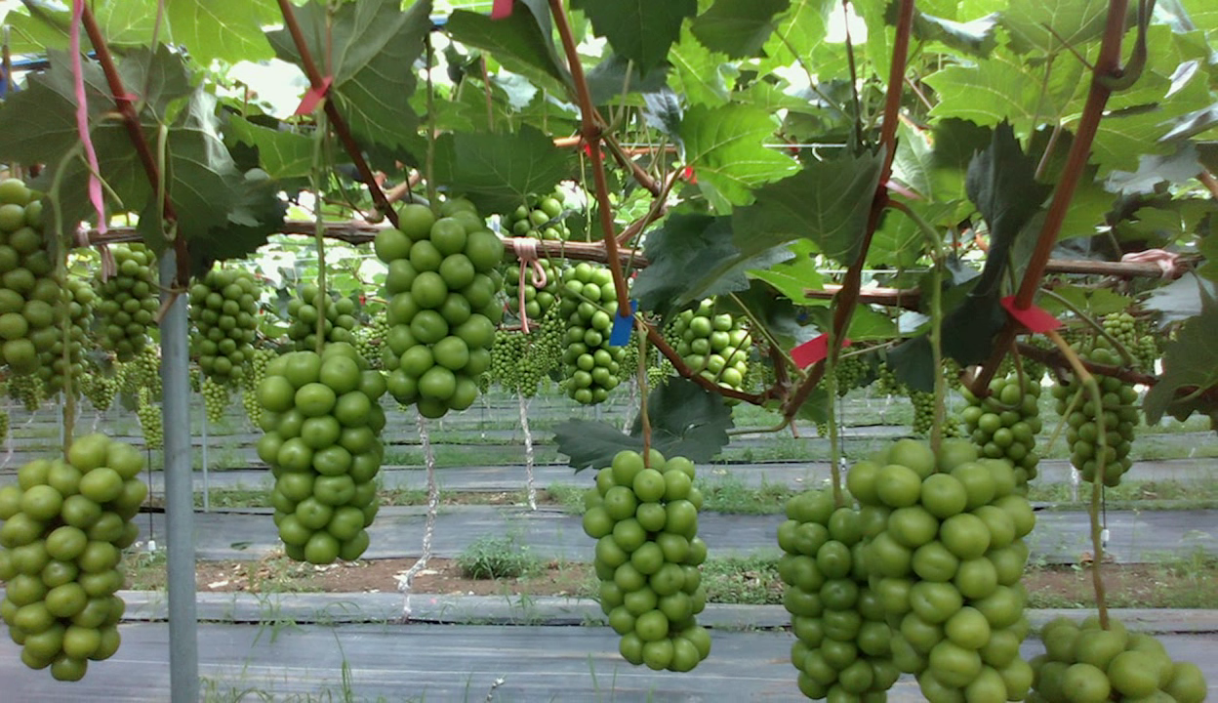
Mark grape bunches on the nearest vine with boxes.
[0,434,148,683]
[581,448,712,673]
[776,486,904,702]
[373,197,505,420]
[845,438,1036,702]
[254,341,387,565]
[1023,613,1208,701]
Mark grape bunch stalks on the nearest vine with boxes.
[887,200,946,453]
[1045,328,1111,631]
[635,323,651,468]
[48,141,84,464]
[425,31,441,221]
[312,96,325,355]
[826,290,845,510]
